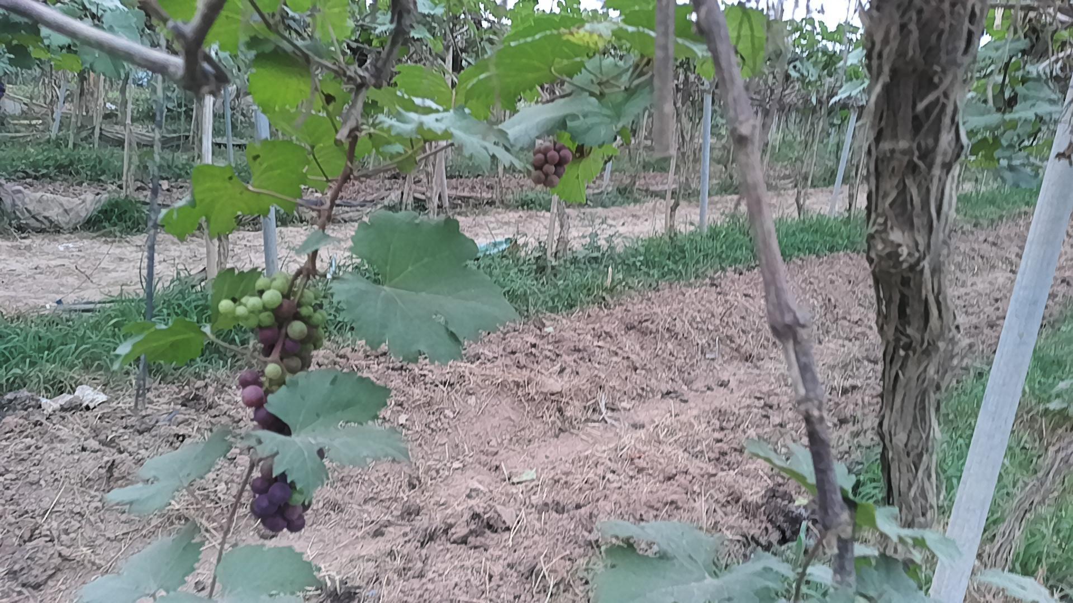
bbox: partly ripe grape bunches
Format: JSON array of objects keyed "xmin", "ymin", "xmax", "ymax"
[
  {"xmin": 529, "ymin": 141, "xmax": 575, "ymax": 189},
  {"xmin": 217, "ymin": 271, "xmax": 327, "ymax": 533}
]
